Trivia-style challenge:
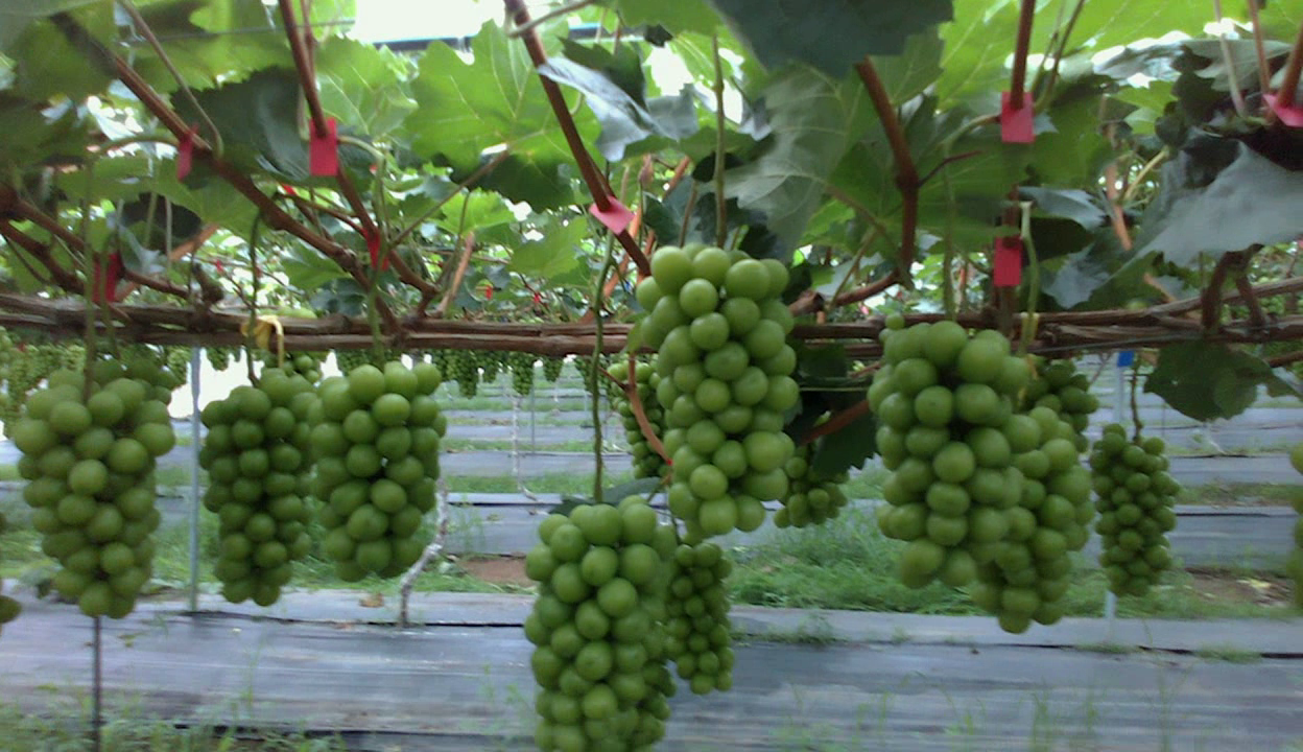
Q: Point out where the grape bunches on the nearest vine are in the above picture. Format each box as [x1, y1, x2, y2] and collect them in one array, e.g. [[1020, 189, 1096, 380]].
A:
[[10, 370, 174, 617], [524, 496, 672, 751], [868, 322, 1037, 587], [636, 242, 800, 542], [197, 367, 316, 607], [306, 362, 449, 584], [969, 404, 1092, 632]]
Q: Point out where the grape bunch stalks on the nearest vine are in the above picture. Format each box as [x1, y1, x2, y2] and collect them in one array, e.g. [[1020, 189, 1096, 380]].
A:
[[345, 138, 389, 367], [1018, 202, 1040, 356], [590, 231, 617, 502], [81, 130, 161, 399], [246, 217, 259, 385], [940, 117, 984, 319], [710, 36, 726, 245]]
